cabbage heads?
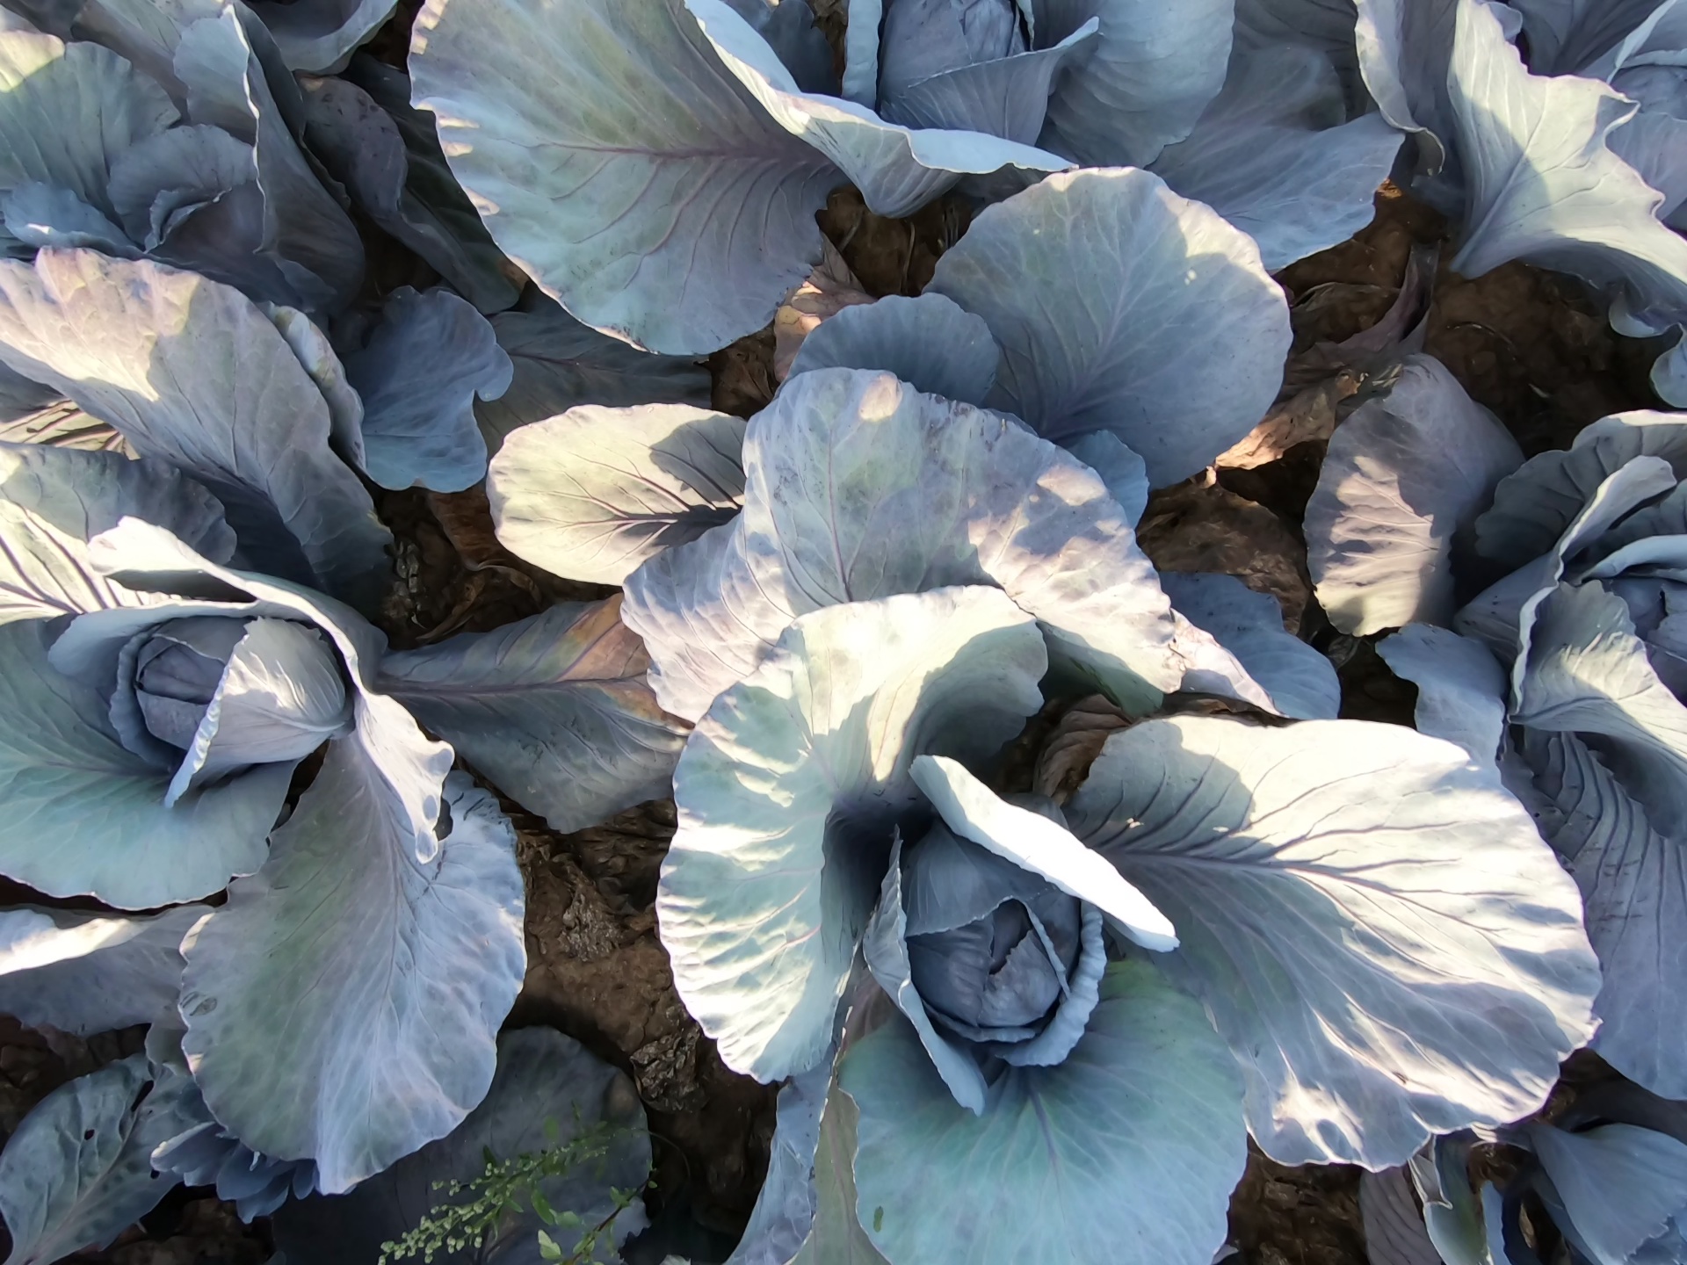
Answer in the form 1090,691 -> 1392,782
1552,51 -> 1684,240
880,3 -> 1035,155
901,838 -> 1085,1035
136,616 -> 344,767
1563,567 -> 1684,719
149,194 -> 298,300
